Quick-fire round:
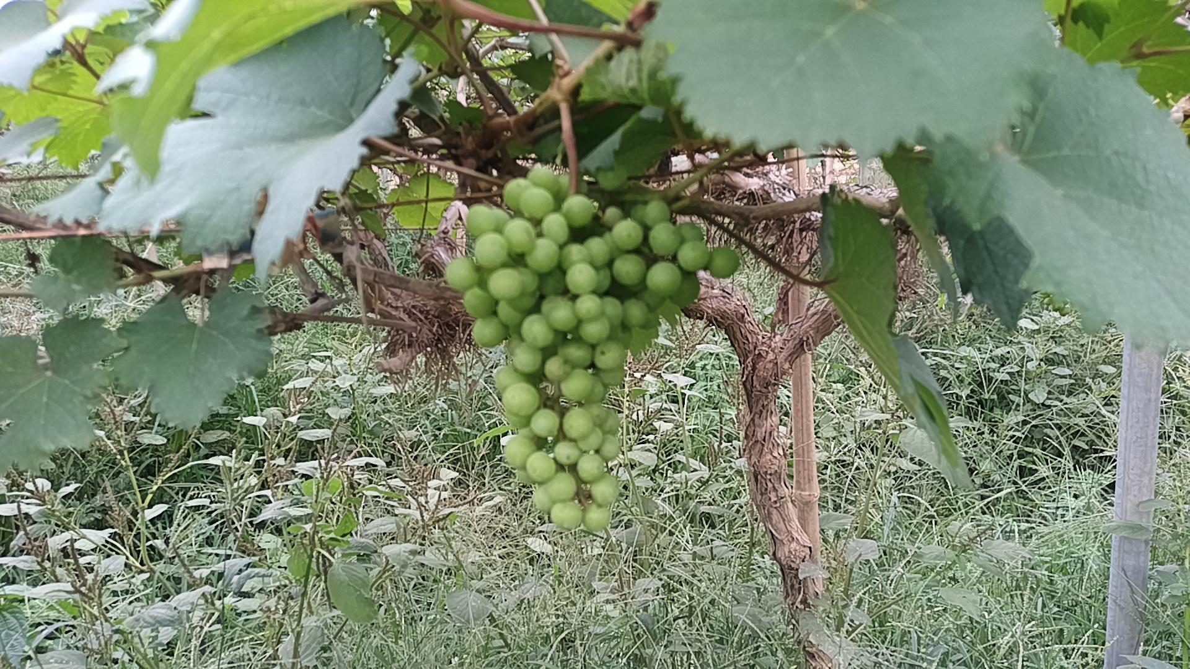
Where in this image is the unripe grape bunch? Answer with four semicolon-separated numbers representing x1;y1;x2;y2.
445;163;739;530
